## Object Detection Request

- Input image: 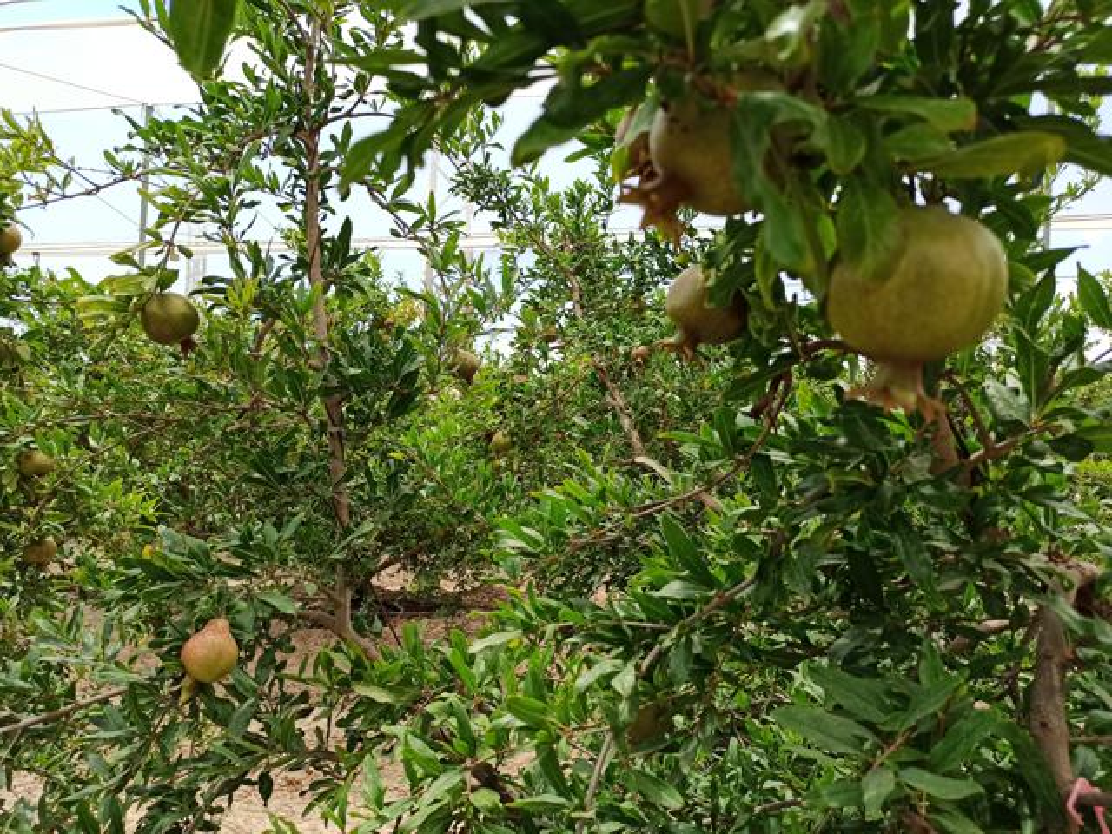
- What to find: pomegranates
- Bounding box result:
[825,207,1008,426]
[24,535,57,572]
[627,709,657,742]
[169,617,240,707]
[655,262,749,363]
[631,344,650,368]
[615,101,751,250]
[0,224,21,269]
[613,104,660,186]
[141,292,202,360]
[490,431,511,452]
[448,349,480,386]
[19,450,56,478]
